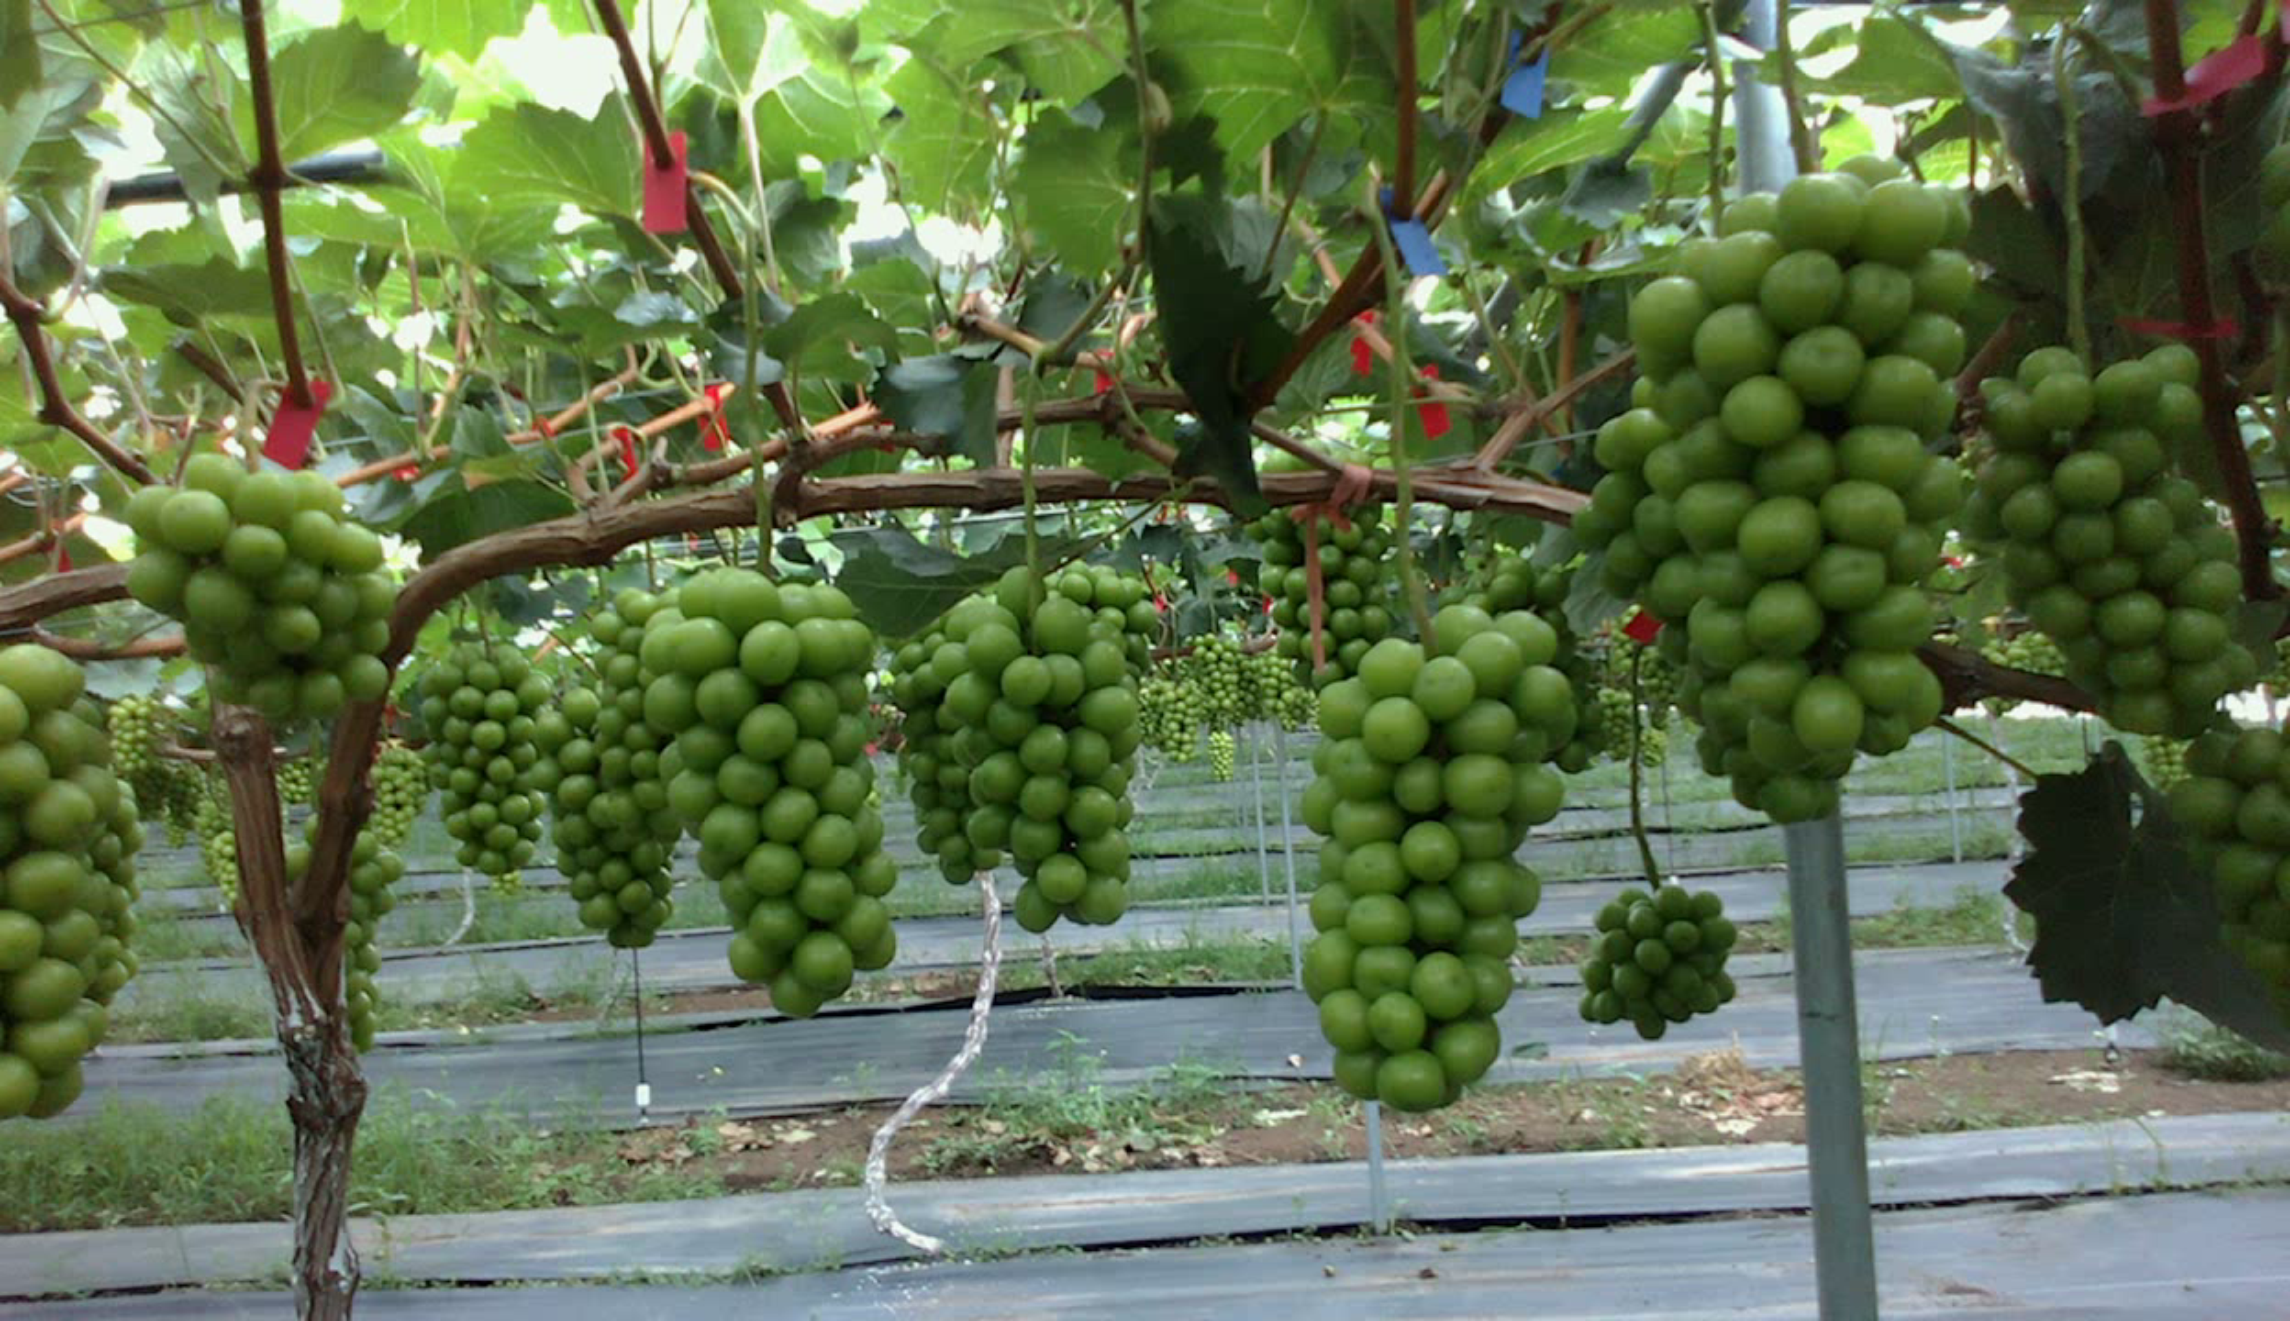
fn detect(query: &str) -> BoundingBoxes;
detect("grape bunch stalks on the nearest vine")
[1776,2,1818,172]
[686,171,784,582]
[980,321,1040,620]
[1363,204,1439,662]
[235,376,284,472]
[2050,22,2143,376]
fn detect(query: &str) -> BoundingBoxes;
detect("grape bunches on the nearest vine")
[1571,154,1971,824]
[1978,343,2257,743]
[932,567,1145,934]
[0,642,121,1121]
[637,567,897,1013]
[1297,604,1580,1112]
[125,453,395,721]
